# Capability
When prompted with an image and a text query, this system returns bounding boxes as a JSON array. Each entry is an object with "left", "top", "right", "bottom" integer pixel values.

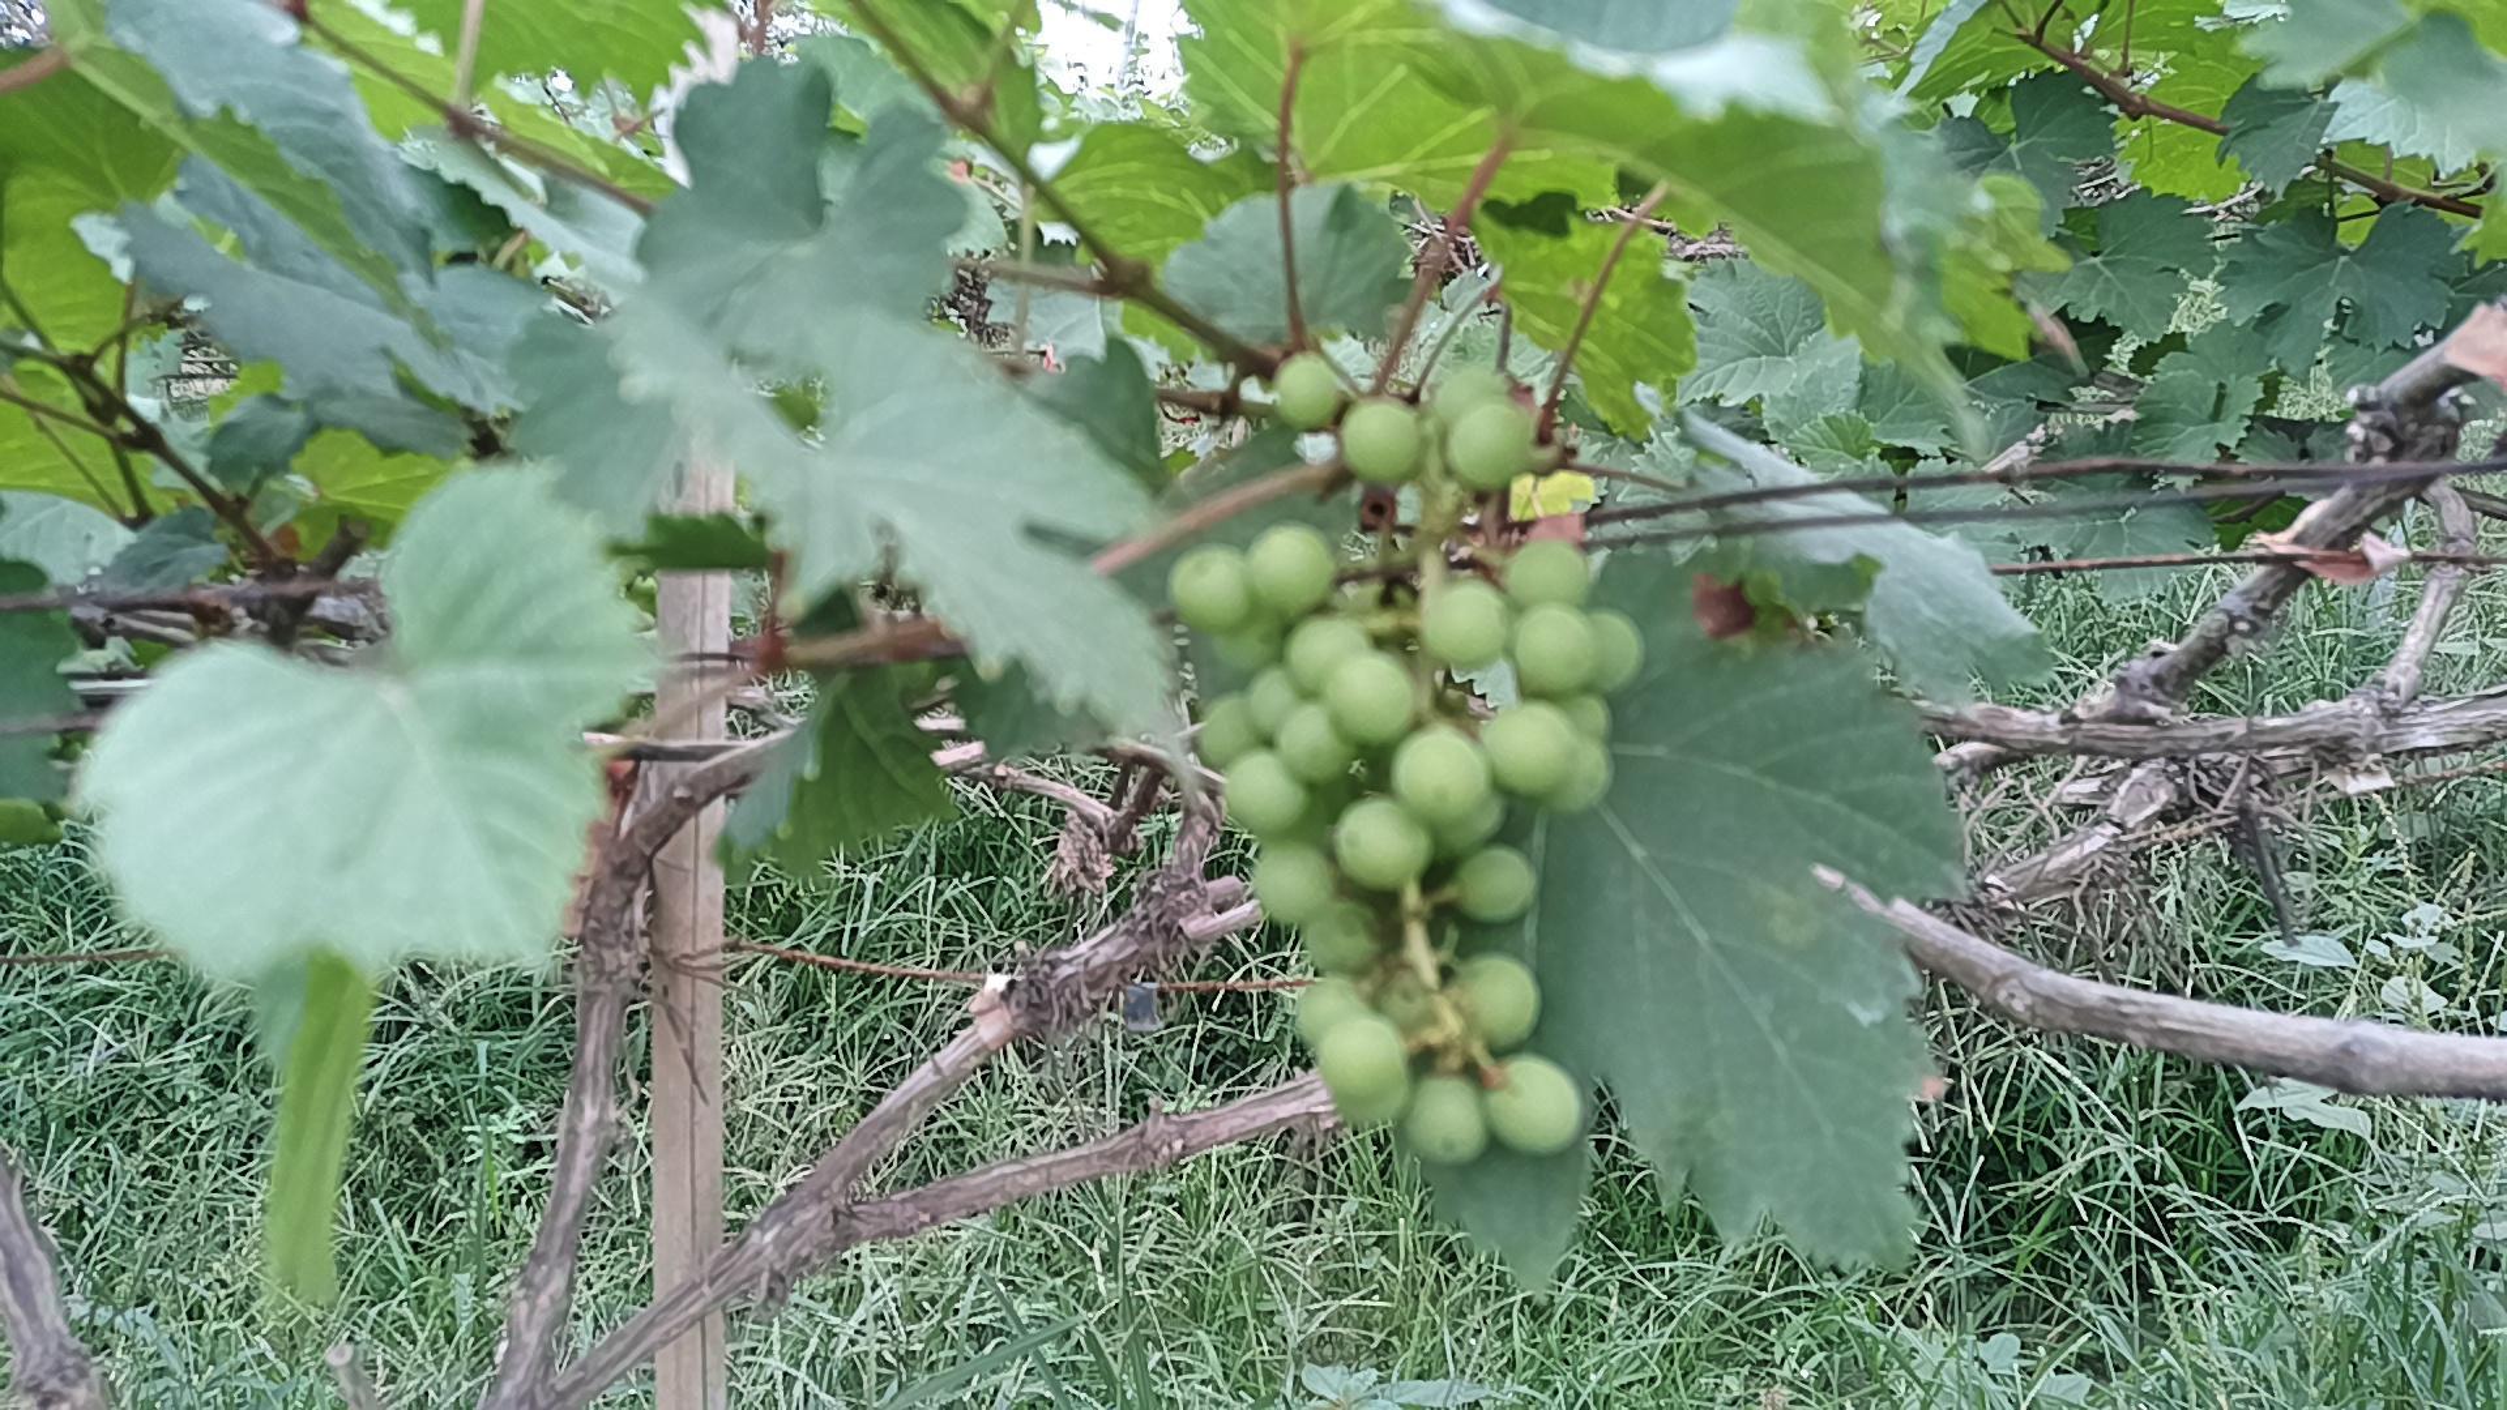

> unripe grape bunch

[{"left": 1170, "top": 352, "right": 1645, "bottom": 1162}]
